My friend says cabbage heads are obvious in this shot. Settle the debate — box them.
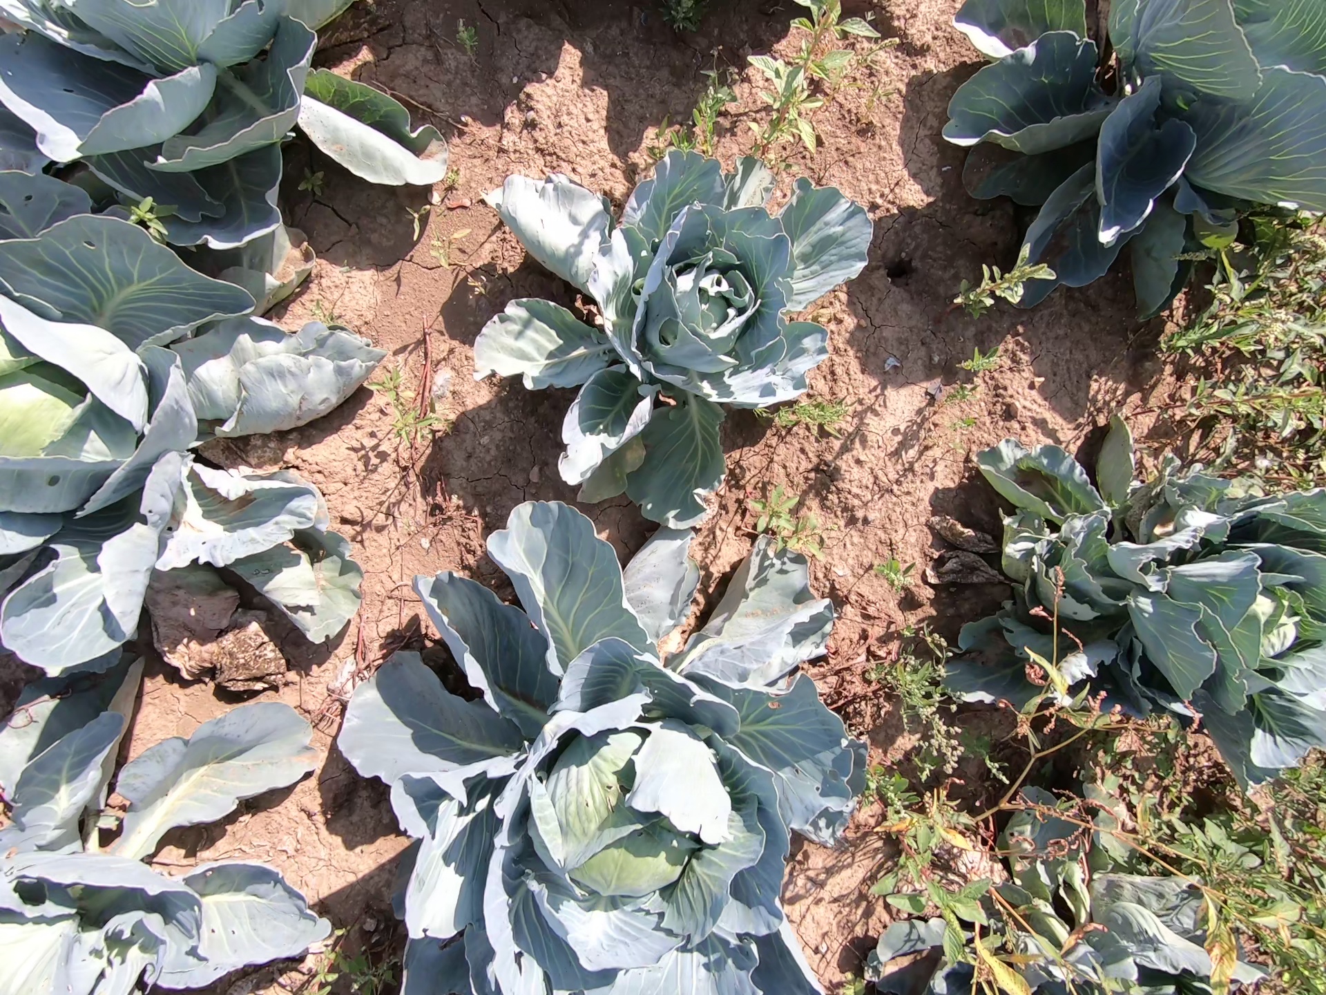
[1204,584,1300,665]
[545,731,706,899]
[1,334,139,510]
[662,264,740,355]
